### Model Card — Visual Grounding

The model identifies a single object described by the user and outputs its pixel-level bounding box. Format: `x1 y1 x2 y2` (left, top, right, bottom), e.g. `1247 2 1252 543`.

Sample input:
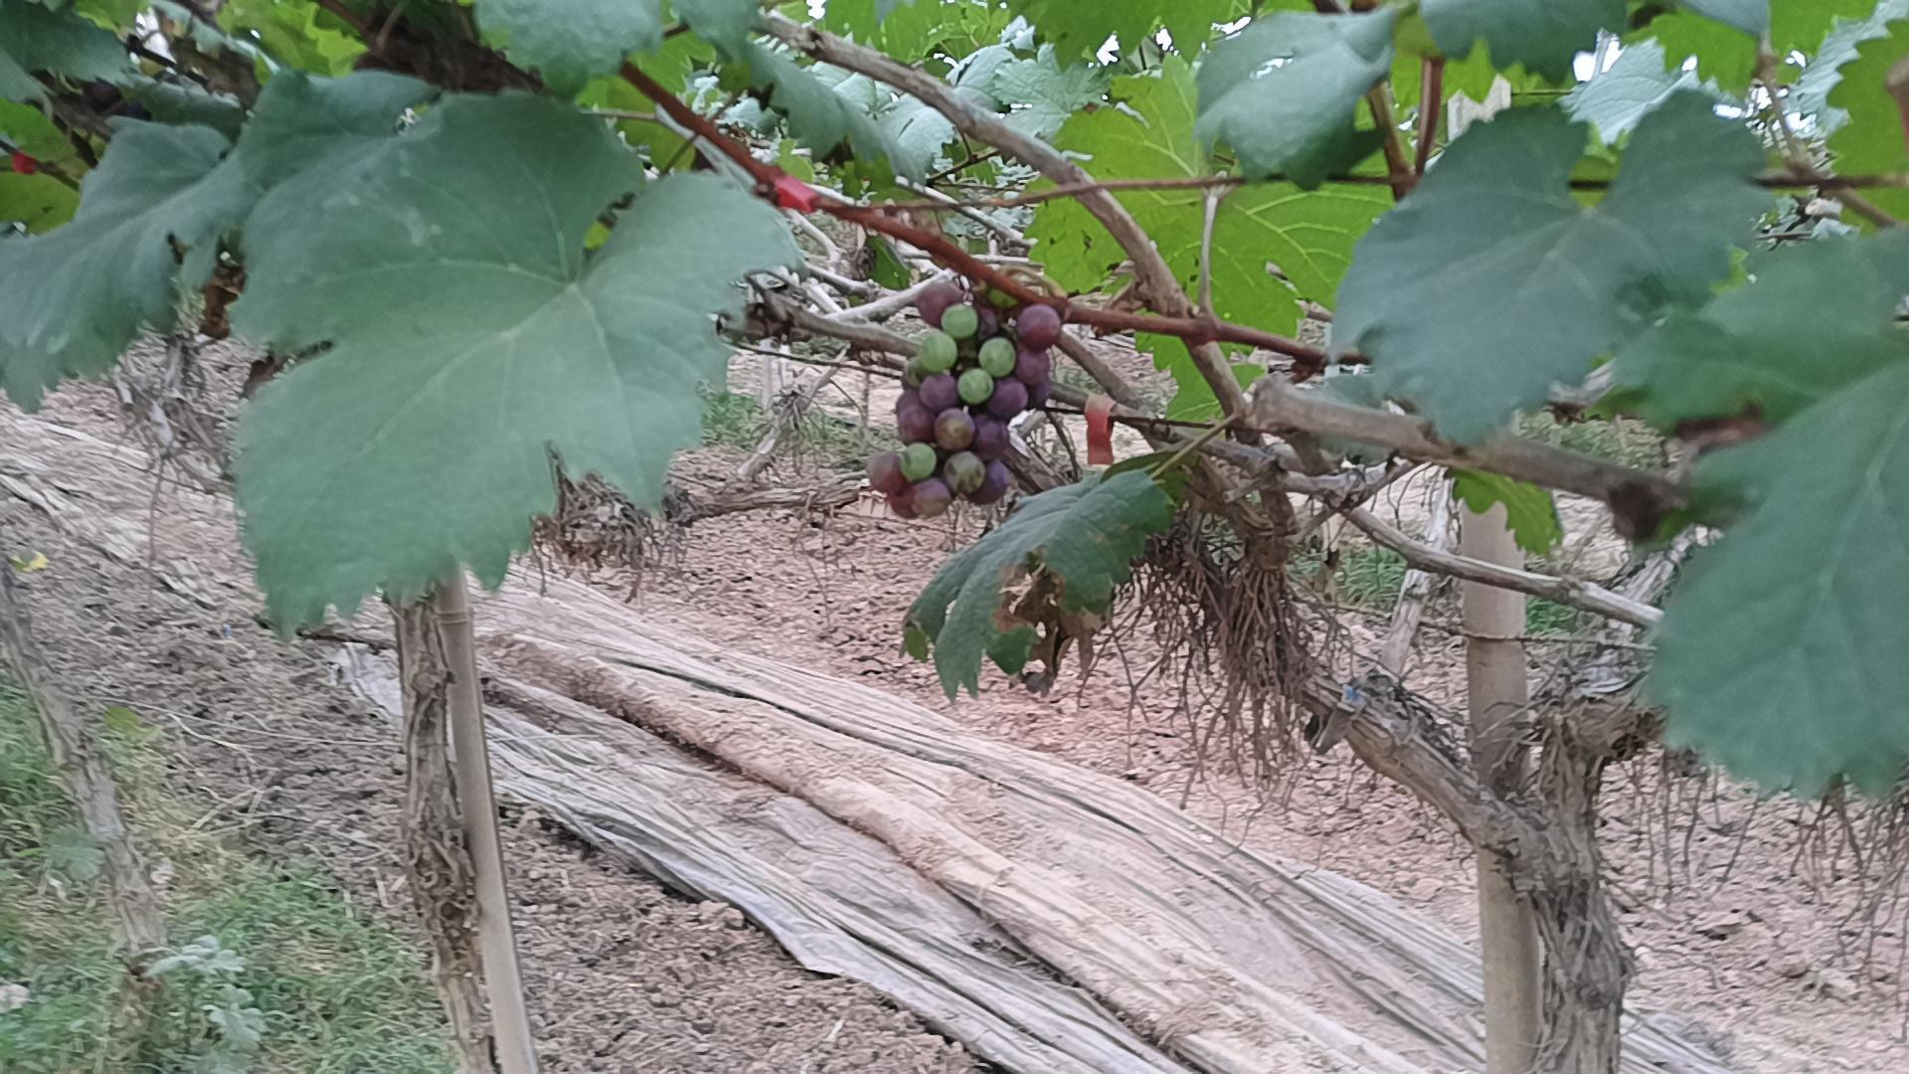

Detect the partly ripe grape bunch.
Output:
867 279 1062 518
